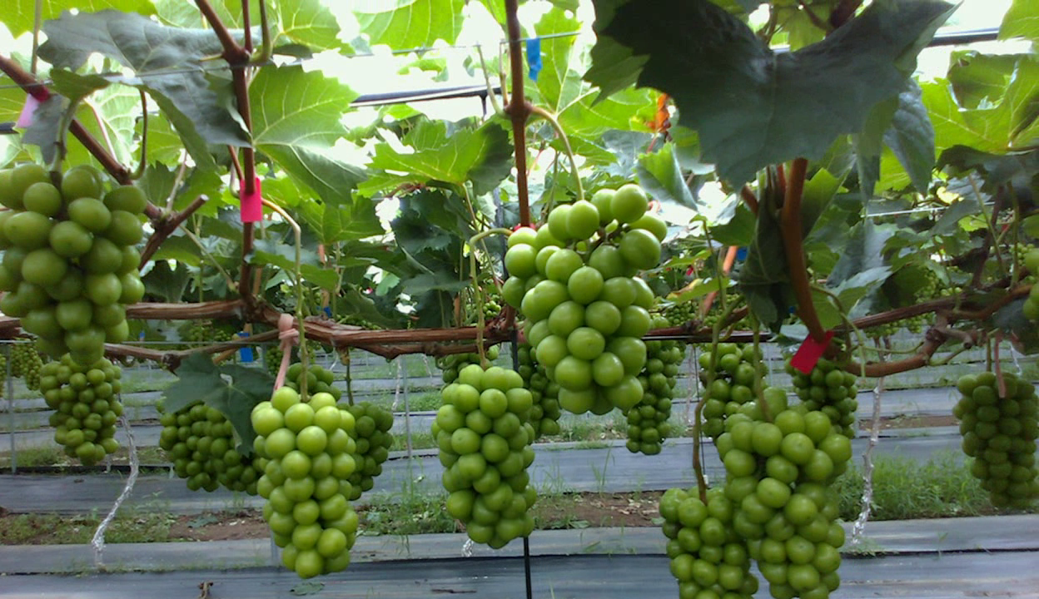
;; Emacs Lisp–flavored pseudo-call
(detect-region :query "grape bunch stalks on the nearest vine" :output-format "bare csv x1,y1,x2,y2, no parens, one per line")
470,227,514,371
48,97,83,193
692,295,744,505
261,198,308,403
748,306,773,422
531,106,584,201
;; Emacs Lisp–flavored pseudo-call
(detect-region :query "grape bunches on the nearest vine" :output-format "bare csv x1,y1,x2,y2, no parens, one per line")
658,486,759,598
430,364,537,549
716,387,852,598
501,183,667,416
250,387,359,581
0,164,147,365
